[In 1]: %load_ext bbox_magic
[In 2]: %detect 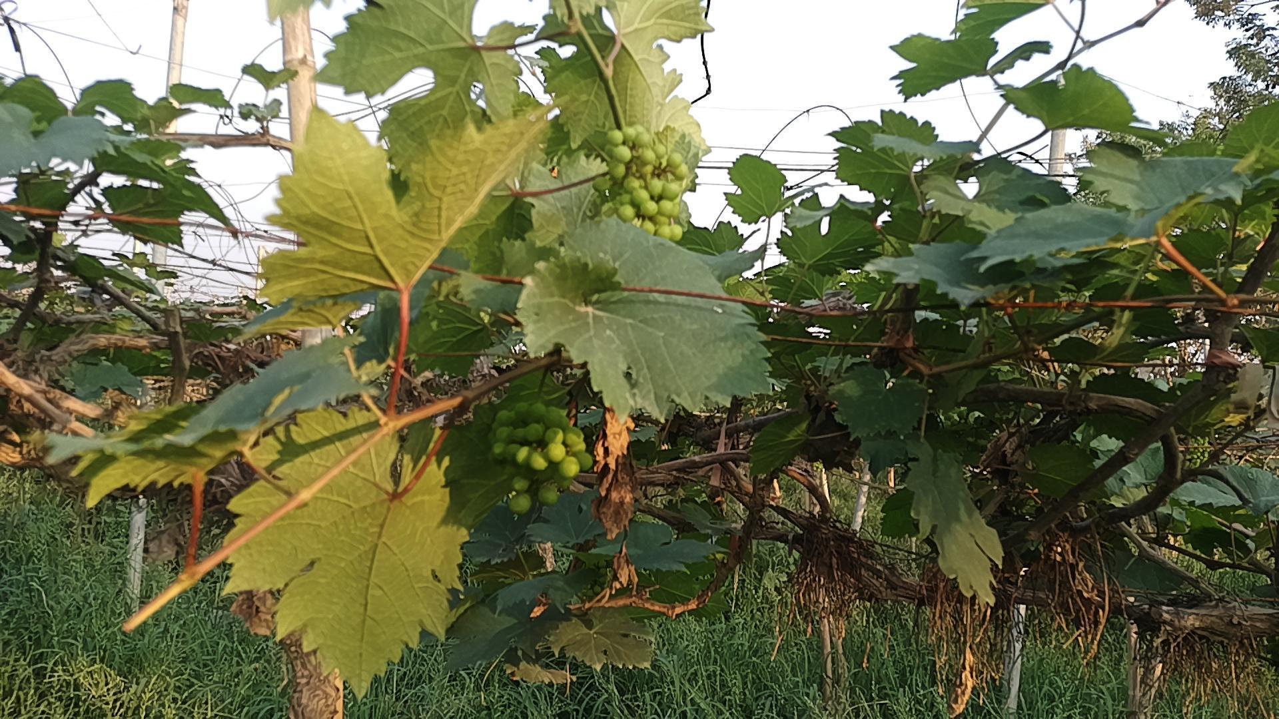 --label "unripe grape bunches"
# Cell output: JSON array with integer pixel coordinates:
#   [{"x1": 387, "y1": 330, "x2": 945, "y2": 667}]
[
  {"x1": 491, "y1": 403, "x2": 592, "y2": 515},
  {"x1": 599, "y1": 127, "x2": 692, "y2": 240},
  {"x1": 1180, "y1": 437, "x2": 1213, "y2": 468}
]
